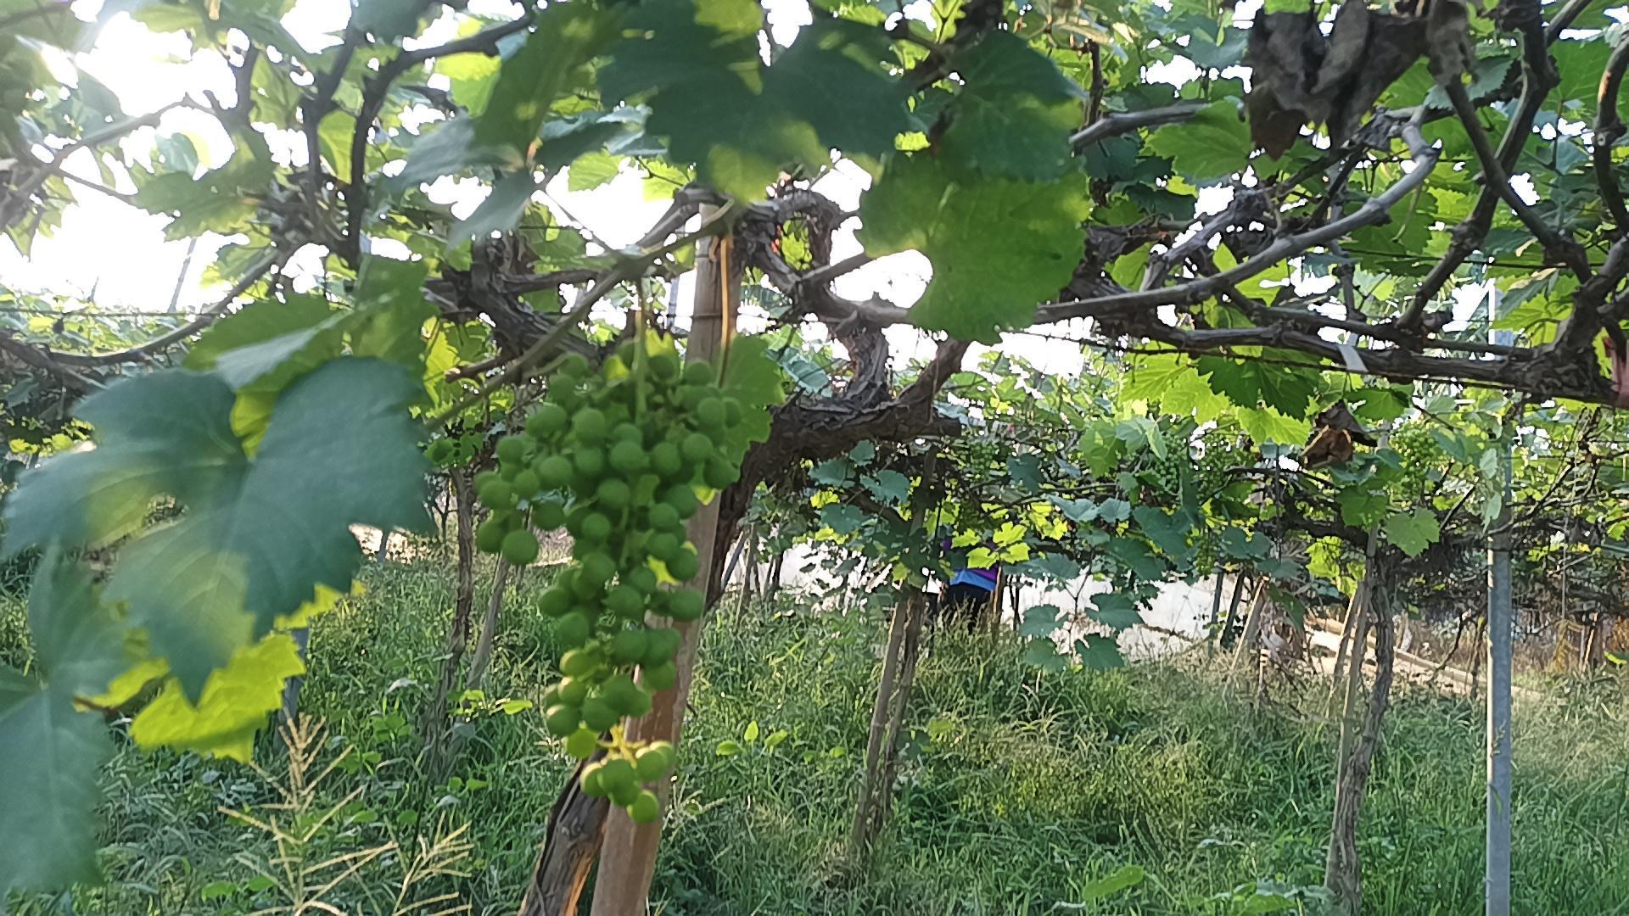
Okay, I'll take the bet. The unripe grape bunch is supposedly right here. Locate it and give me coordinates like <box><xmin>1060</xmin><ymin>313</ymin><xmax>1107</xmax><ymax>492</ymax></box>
<box><xmin>479</xmin><ymin>332</ymin><xmax>780</xmax><ymax>822</ymax></box>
